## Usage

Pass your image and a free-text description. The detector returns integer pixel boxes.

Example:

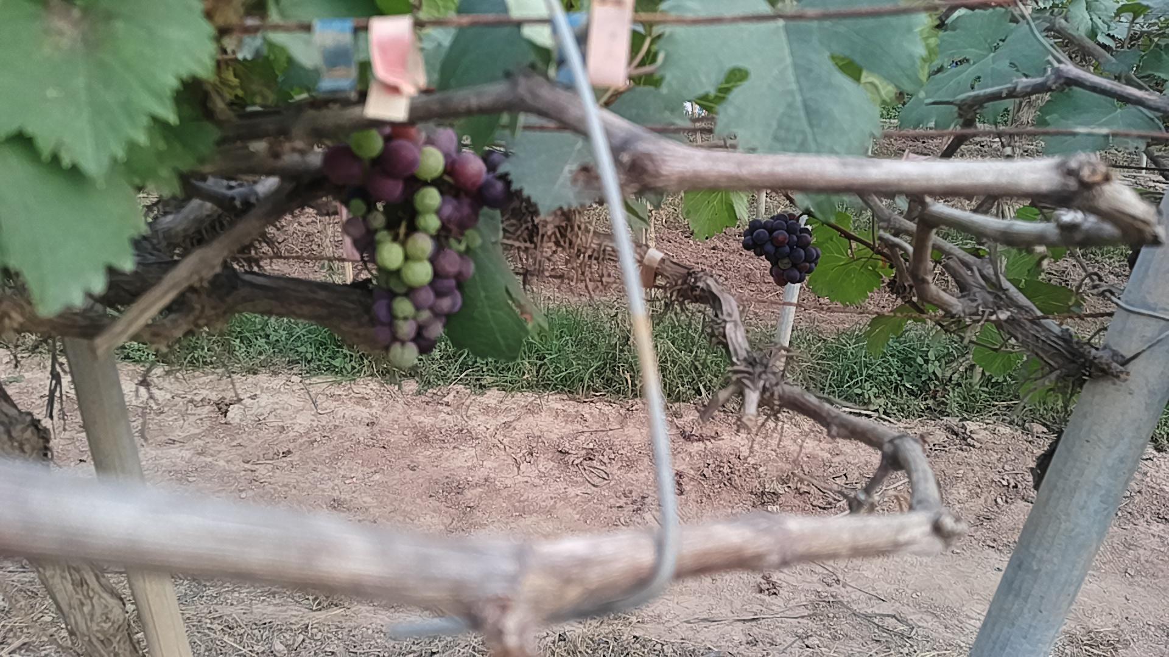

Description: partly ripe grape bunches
[742,213,821,286]
[322,125,510,370]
